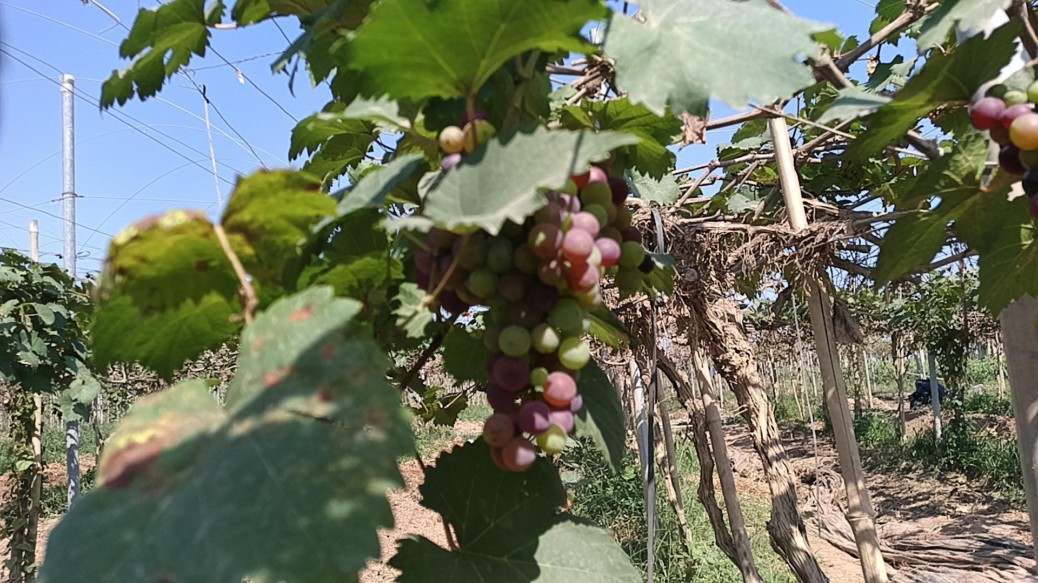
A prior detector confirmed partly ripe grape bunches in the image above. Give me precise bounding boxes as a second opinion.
[969,81,1037,219]
[416,120,654,472]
